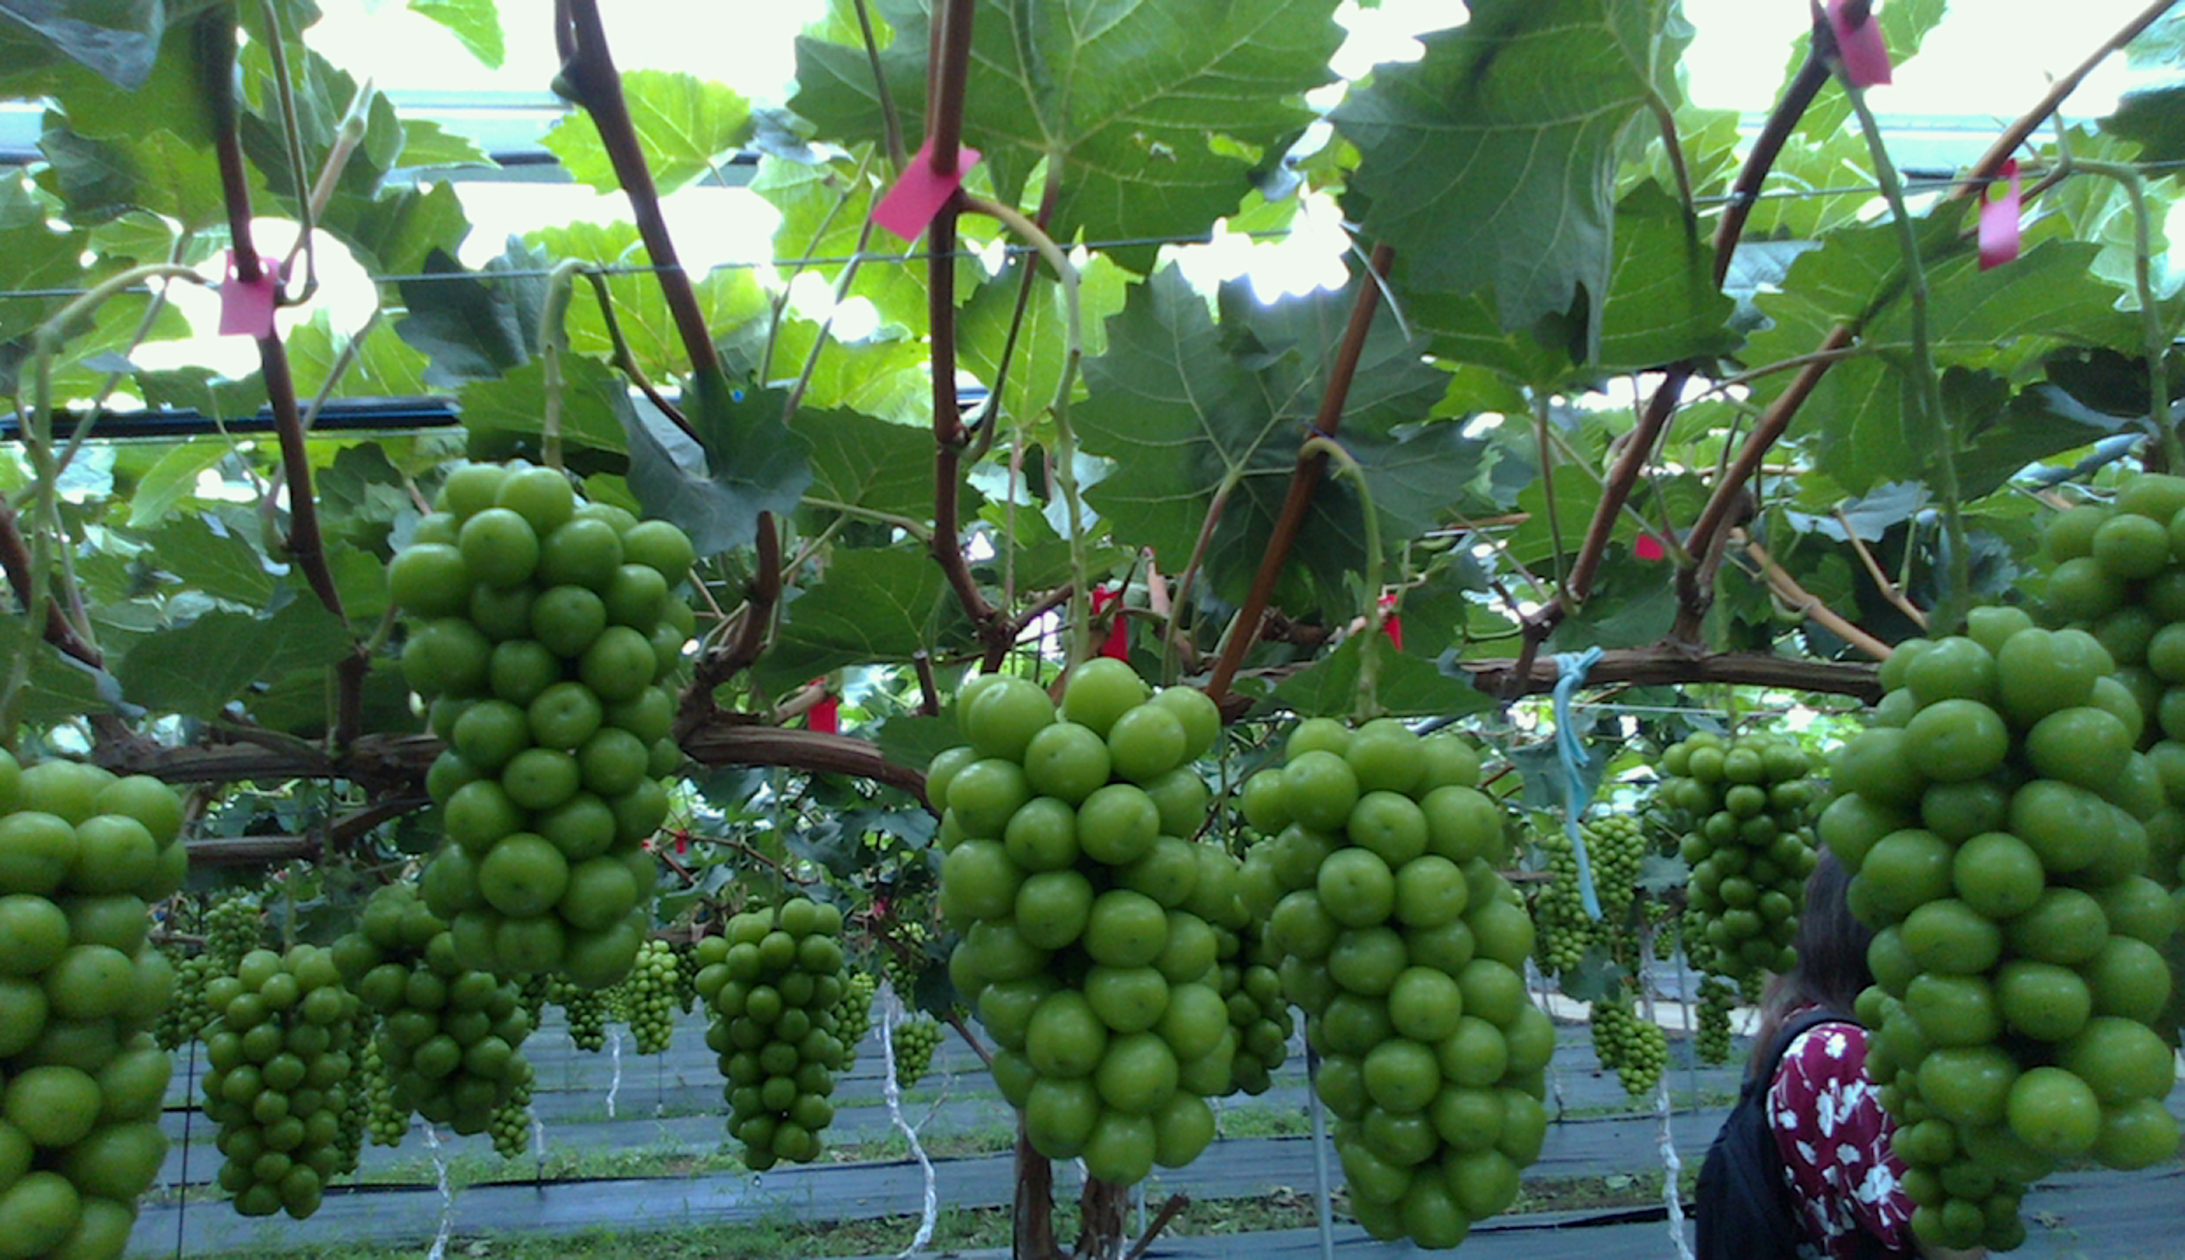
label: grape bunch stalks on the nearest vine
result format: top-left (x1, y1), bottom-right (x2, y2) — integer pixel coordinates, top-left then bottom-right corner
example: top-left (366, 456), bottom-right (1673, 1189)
top-left (2073, 159), bottom-right (2183, 474)
top-left (970, 198), bottom-right (1089, 668)
top-left (1304, 436), bottom-right (1385, 726)
top-left (543, 259), bottom-right (590, 469)
top-left (1847, 89), bottom-right (1970, 633)
top-left (0, 262), bottom-right (203, 751)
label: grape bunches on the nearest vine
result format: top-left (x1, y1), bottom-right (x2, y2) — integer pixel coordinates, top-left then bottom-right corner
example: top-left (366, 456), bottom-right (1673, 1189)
top-left (385, 462), bottom-right (693, 996)
top-left (1812, 607), bottom-right (2183, 1181)
top-left (0, 751), bottom-right (189, 1258)
top-left (1231, 716), bottom-right (1556, 1246)
top-left (2045, 472), bottom-right (2183, 1039)
top-left (921, 658), bottom-right (1234, 1190)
